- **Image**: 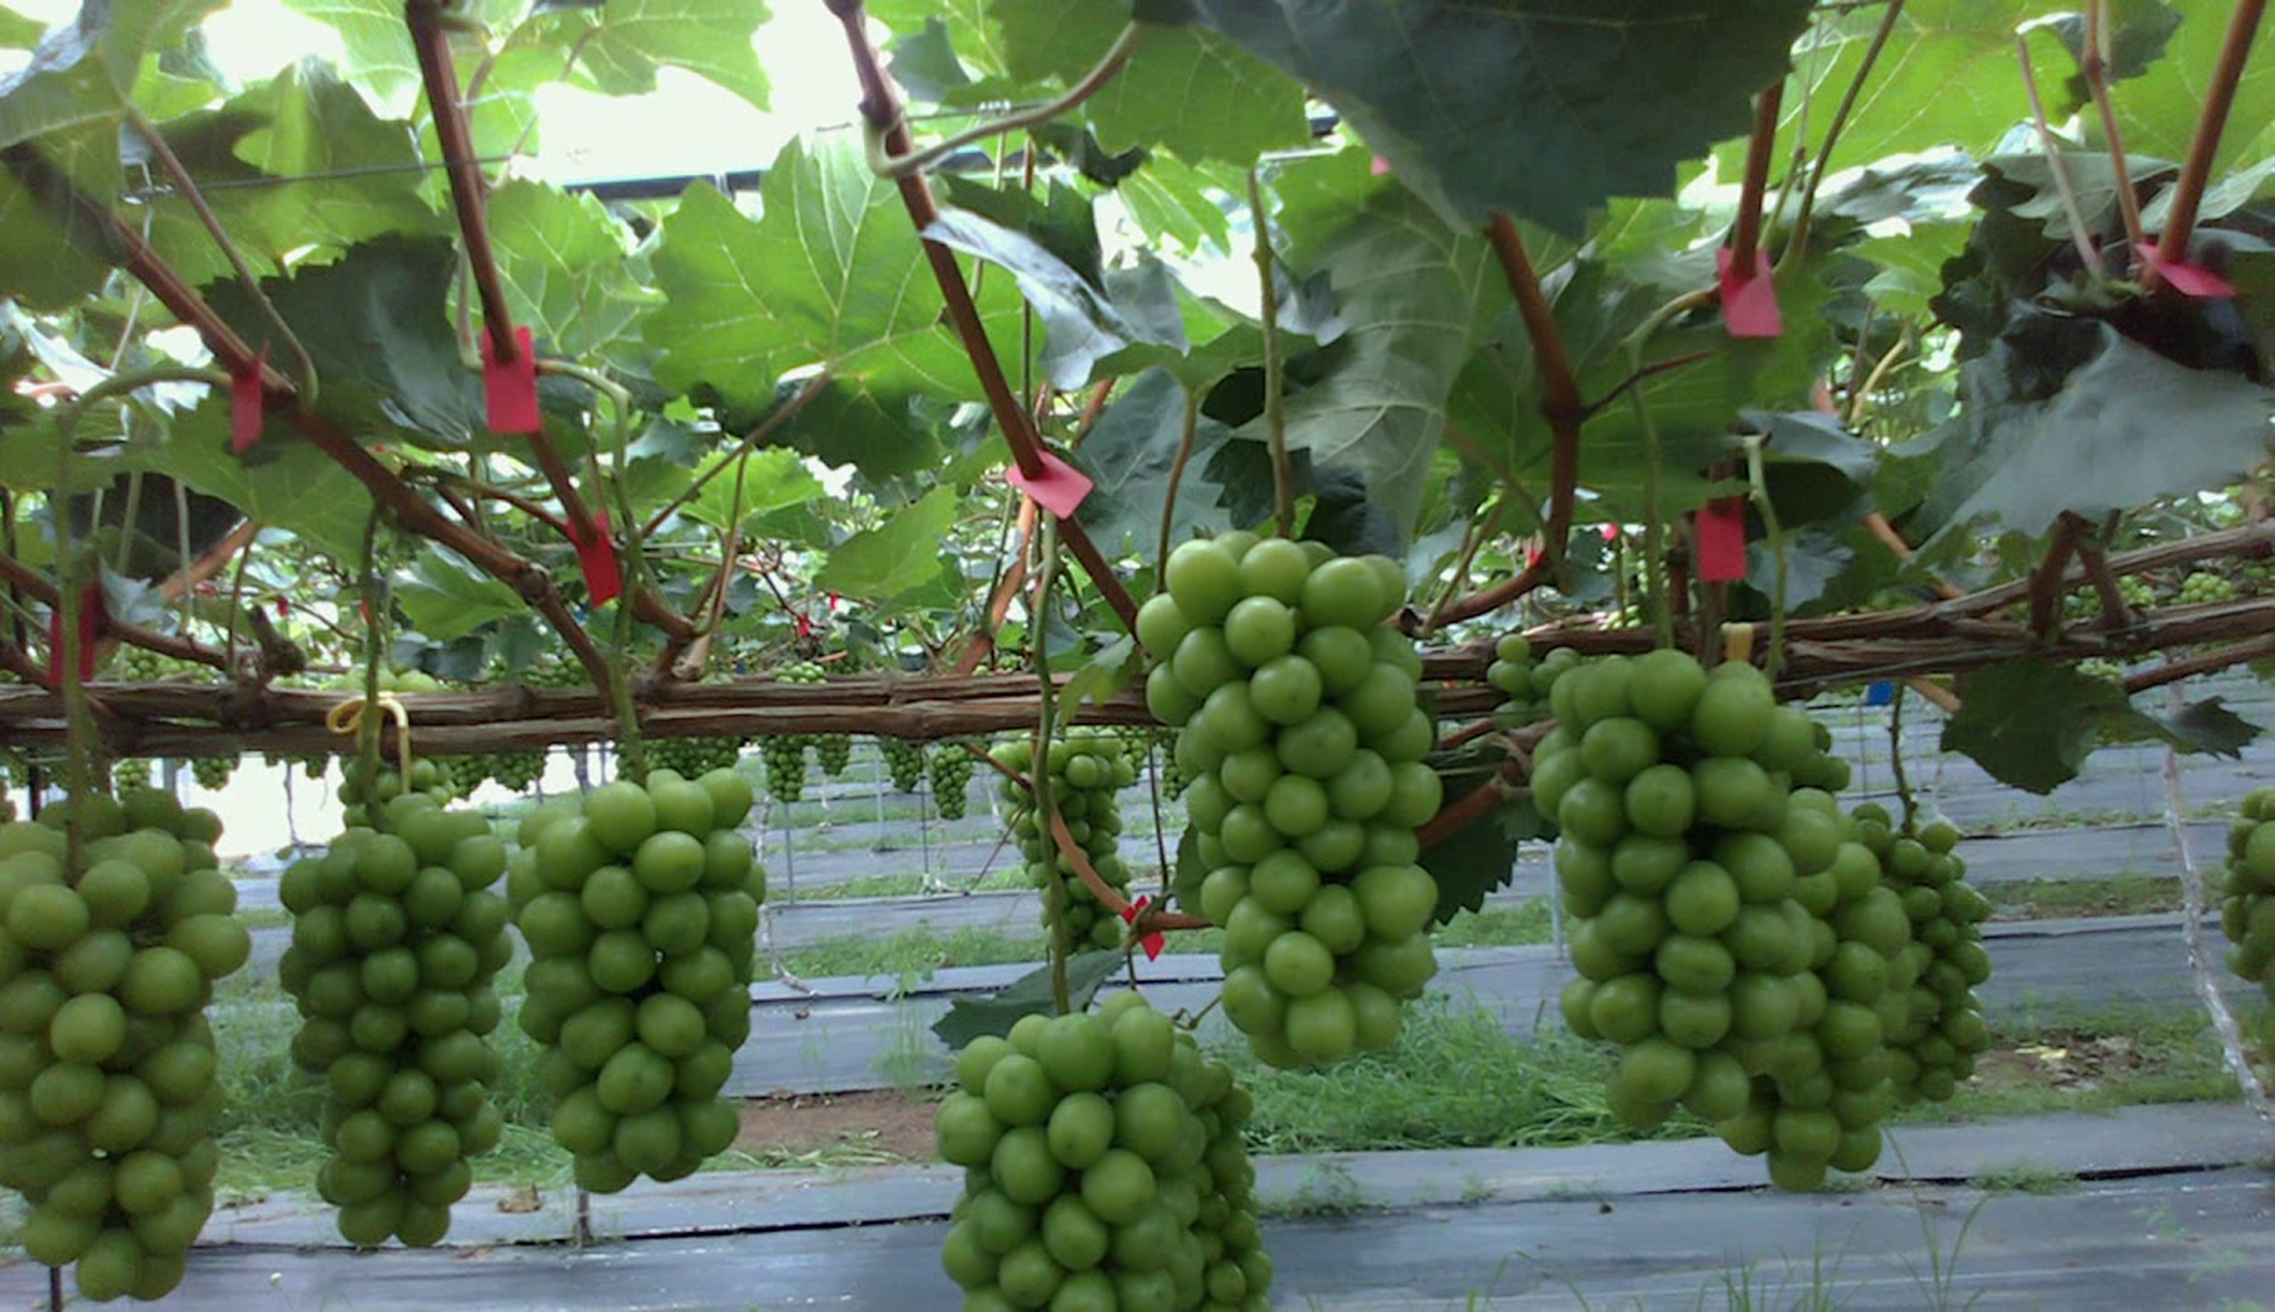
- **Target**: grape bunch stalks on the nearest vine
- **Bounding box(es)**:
[359,510,386,831]
[1249,171,1292,538]
[1741,432,1786,676]
[1032,514,1072,1015]
[53,364,219,876]
[1628,290,1710,649]
[545,361,645,778]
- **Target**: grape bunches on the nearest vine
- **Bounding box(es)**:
[0,787,252,1301]
[279,791,514,1250]
[1721,789,1923,1195]
[1531,651,1841,1135]
[935,991,1209,1310]
[1134,530,1442,1071]
[505,769,767,1195]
